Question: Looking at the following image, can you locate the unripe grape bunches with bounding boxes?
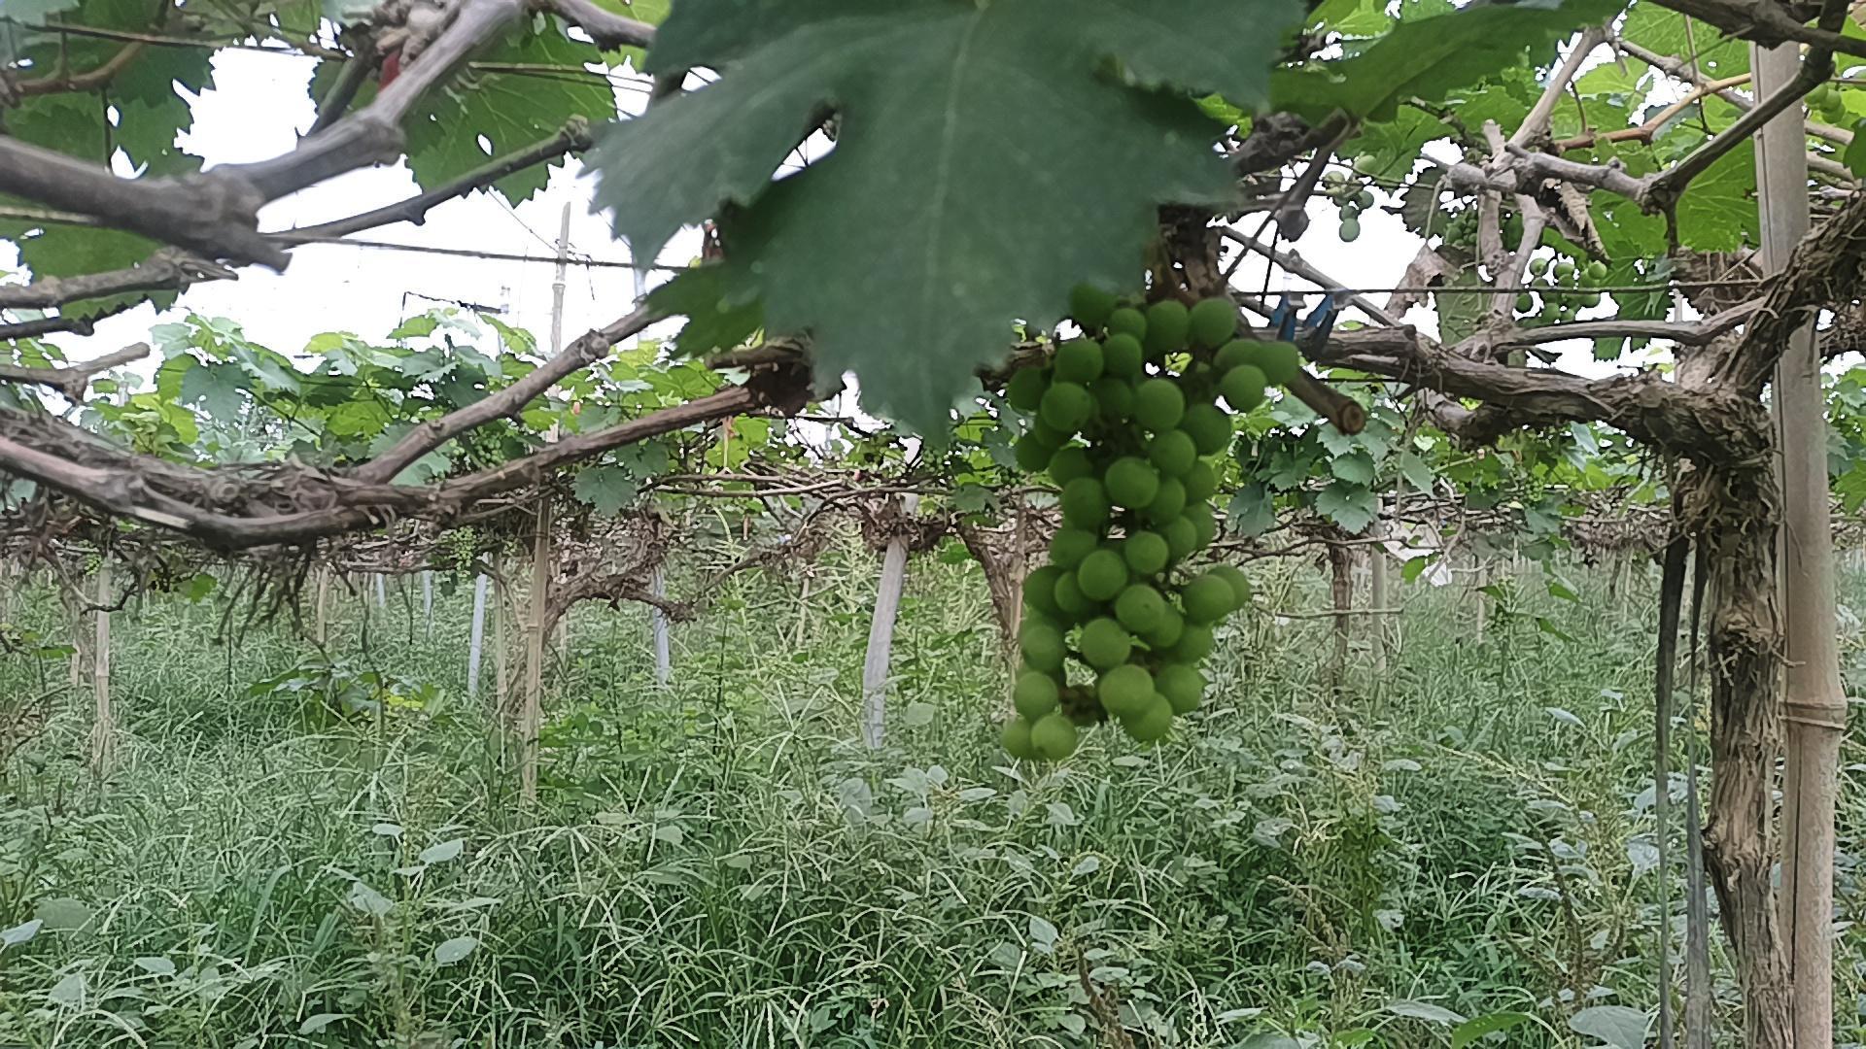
[1004,288,1297,757]
[1512,254,1608,325]
[1315,153,1374,242]
[1804,54,1865,130]
[1426,191,1521,275]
